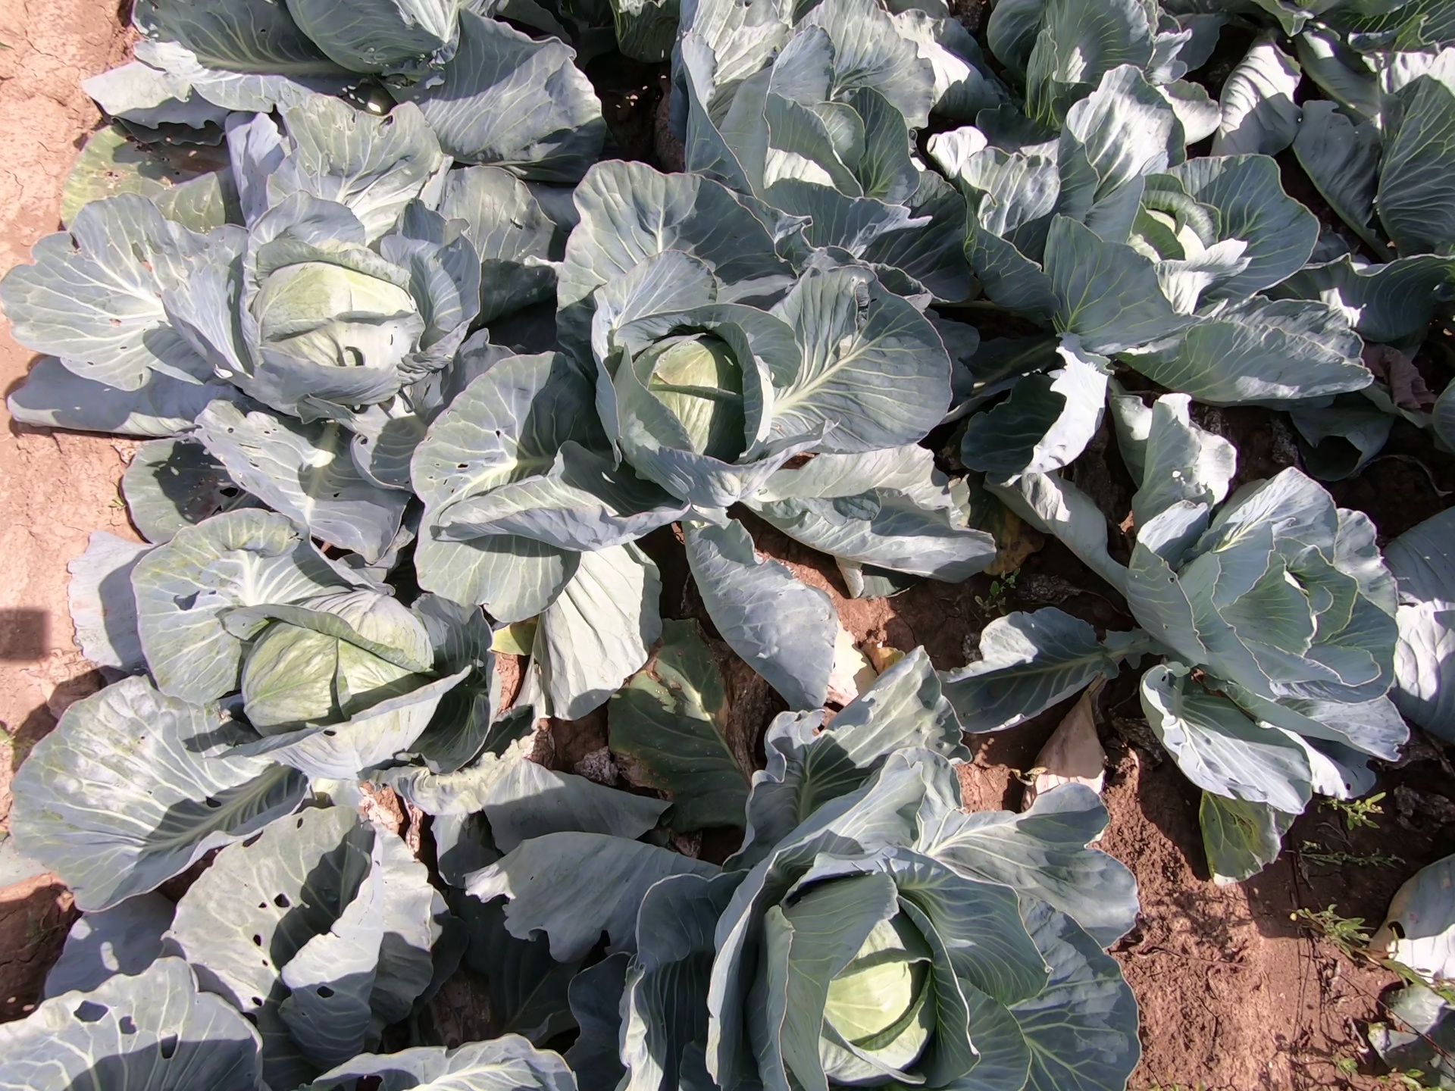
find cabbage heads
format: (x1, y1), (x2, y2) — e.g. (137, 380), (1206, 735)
(737, 142), (856, 267)
(1075, 201), (1210, 334)
(780, 892), (940, 1086)
(243, 592), (433, 780)
(1207, 561), (1313, 675)
(614, 333), (771, 475)
(286, 0), (458, 68)
(243, 240), (418, 401)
